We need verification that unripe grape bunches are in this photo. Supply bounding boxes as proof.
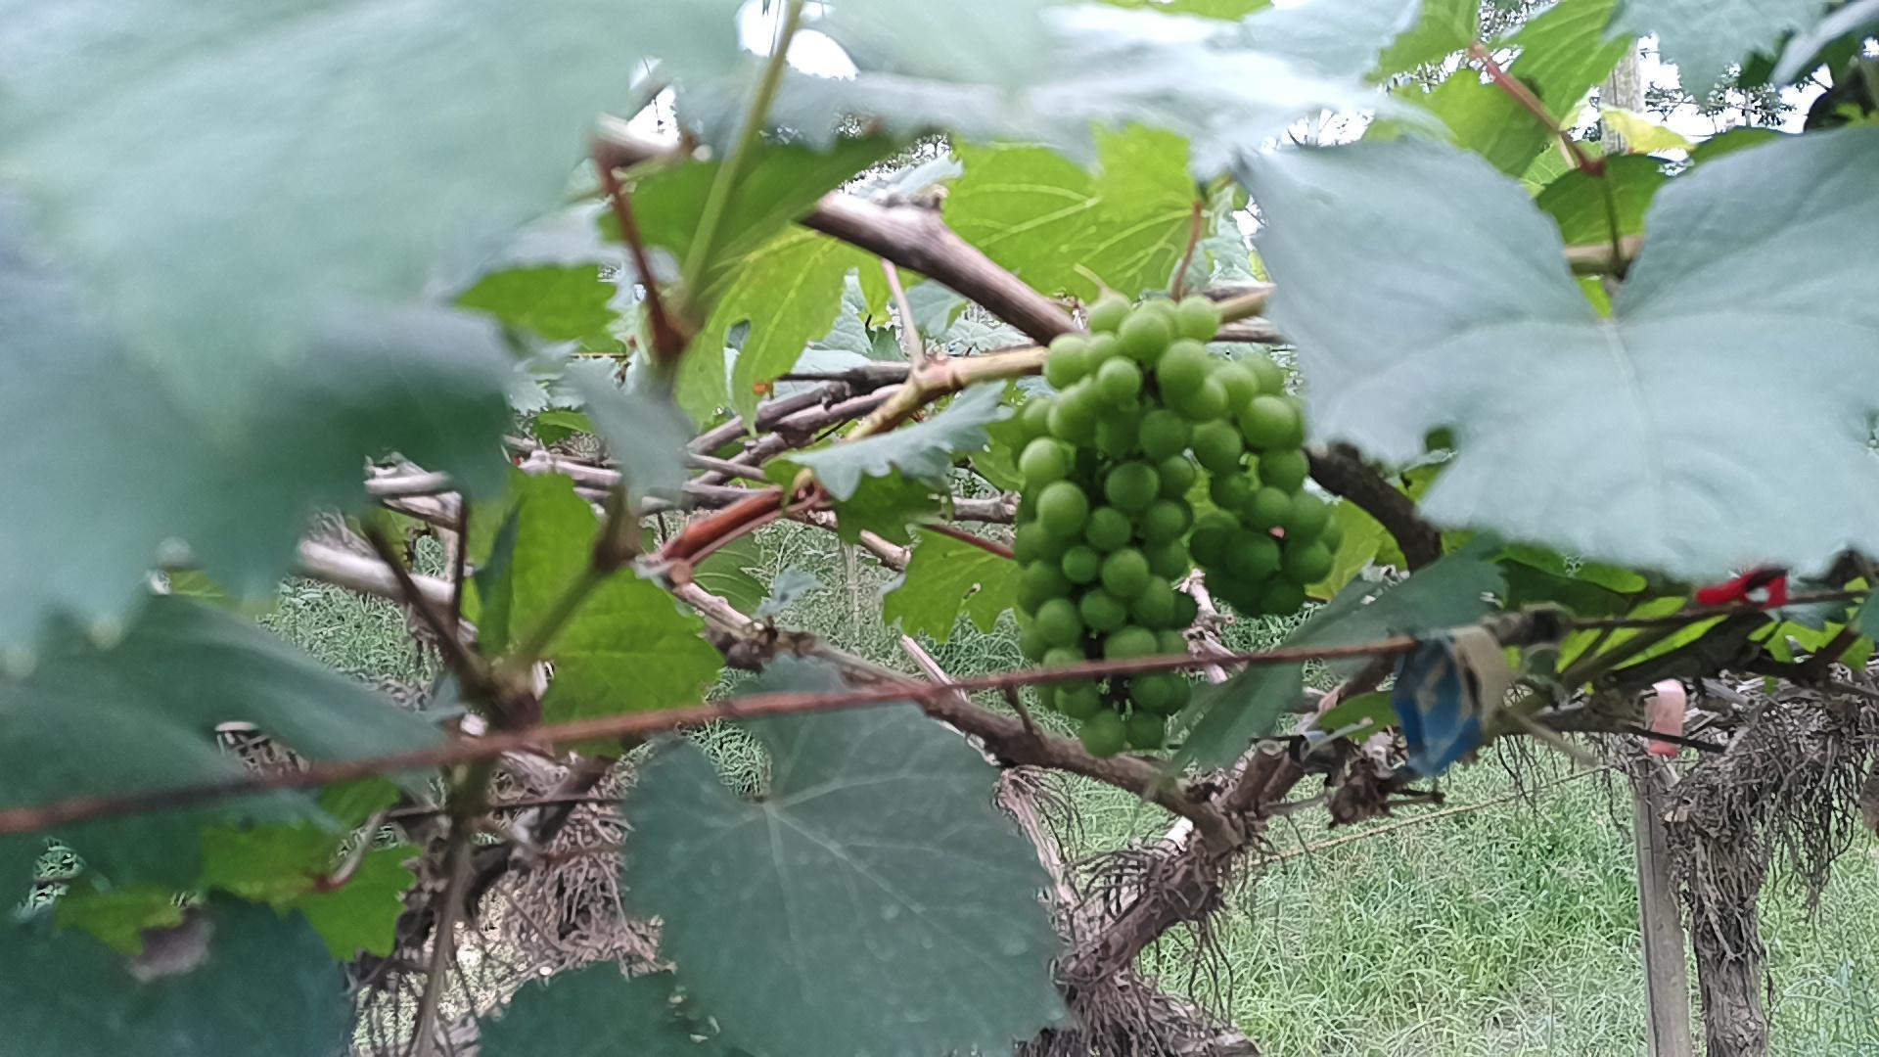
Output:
[1013,296,1226,758]
[1191,353,1344,617]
